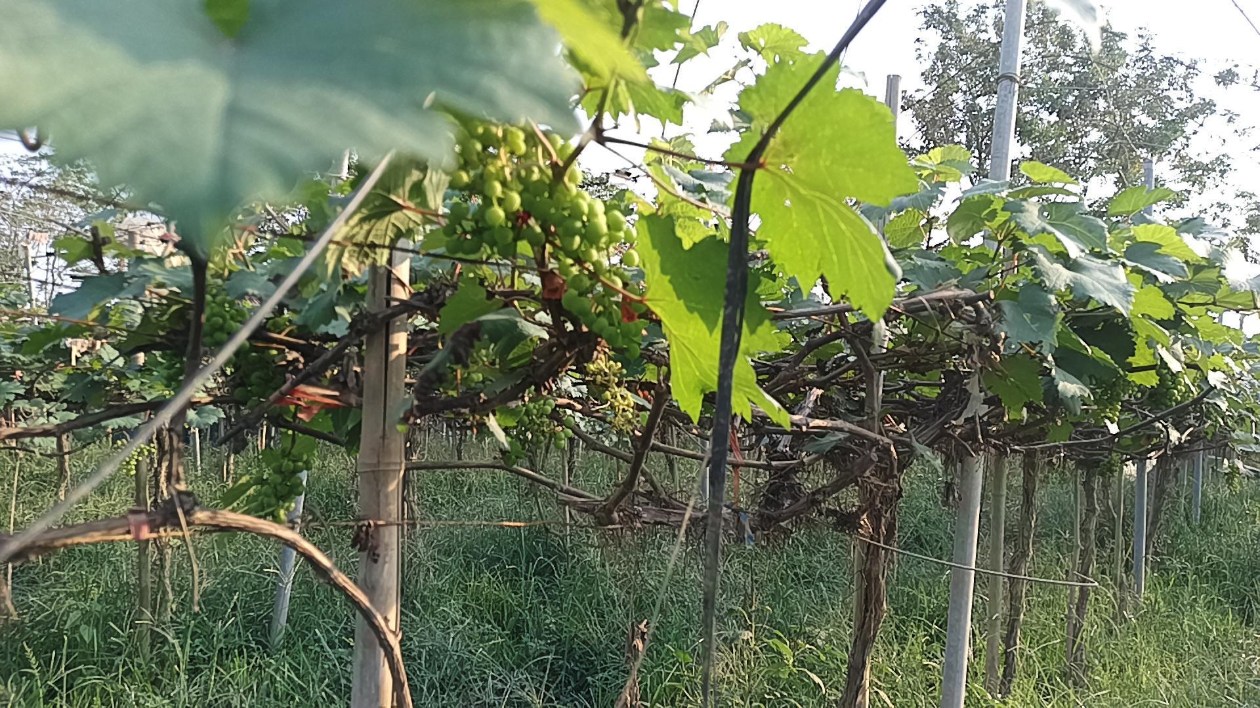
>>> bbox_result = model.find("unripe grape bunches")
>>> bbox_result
[437,106,646,359]
[519,399,574,450]
[201,294,285,401]
[256,458,314,523]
